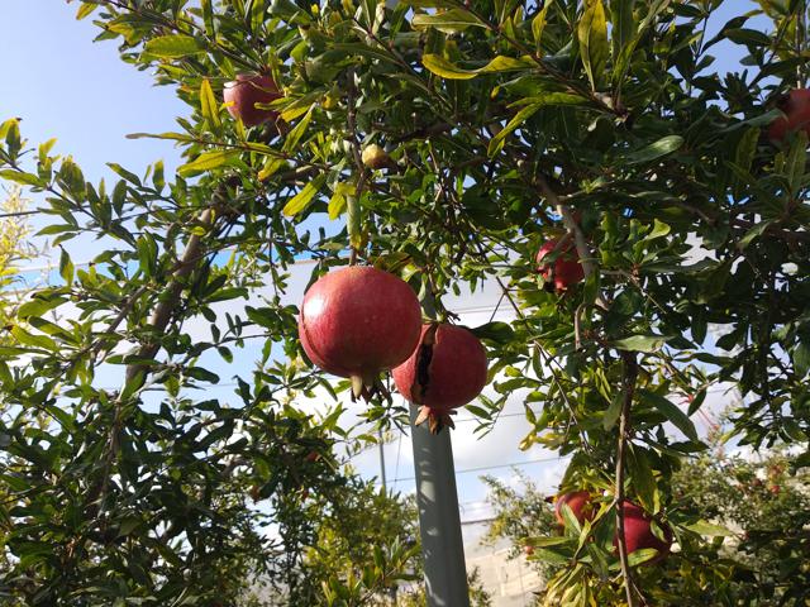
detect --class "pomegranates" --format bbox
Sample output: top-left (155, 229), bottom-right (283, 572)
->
top-left (390, 322), bottom-right (487, 435)
top-left (623, 497), bottom-right (671, 556)
top-left (296, 264), bottom-right (423, 408)
top-left (766, 87), bottom-right (810, 142)
top-left (223, 73), bottom-right (283, 125)
top-left (556, 489), bottom-right (591, 526)
top-left (535, 239), bottom-right (585, 290)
